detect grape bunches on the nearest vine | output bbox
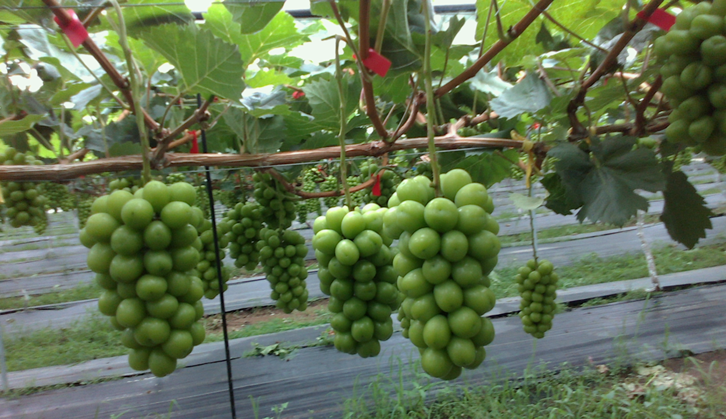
[653,0,725,157]
[313,203,401,358]
[78,180,205,377]
[383,168,501,382]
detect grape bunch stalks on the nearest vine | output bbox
[99,1,151,183]
[322,34,357,211]
[418,0,443,197]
